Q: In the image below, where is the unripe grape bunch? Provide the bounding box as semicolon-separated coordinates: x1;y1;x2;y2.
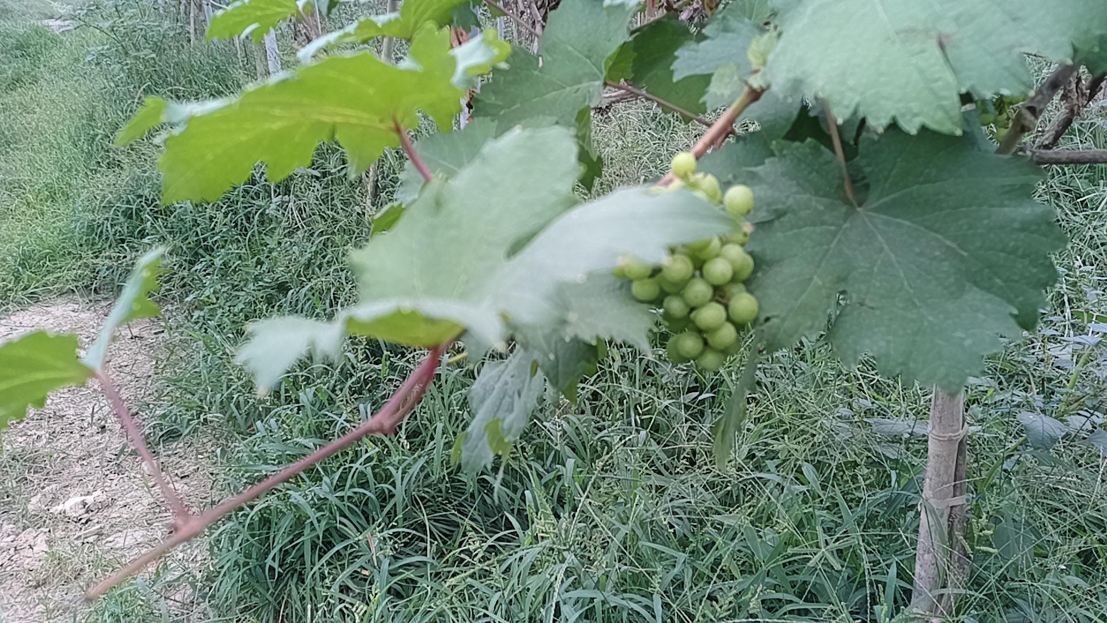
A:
614;153;758;371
